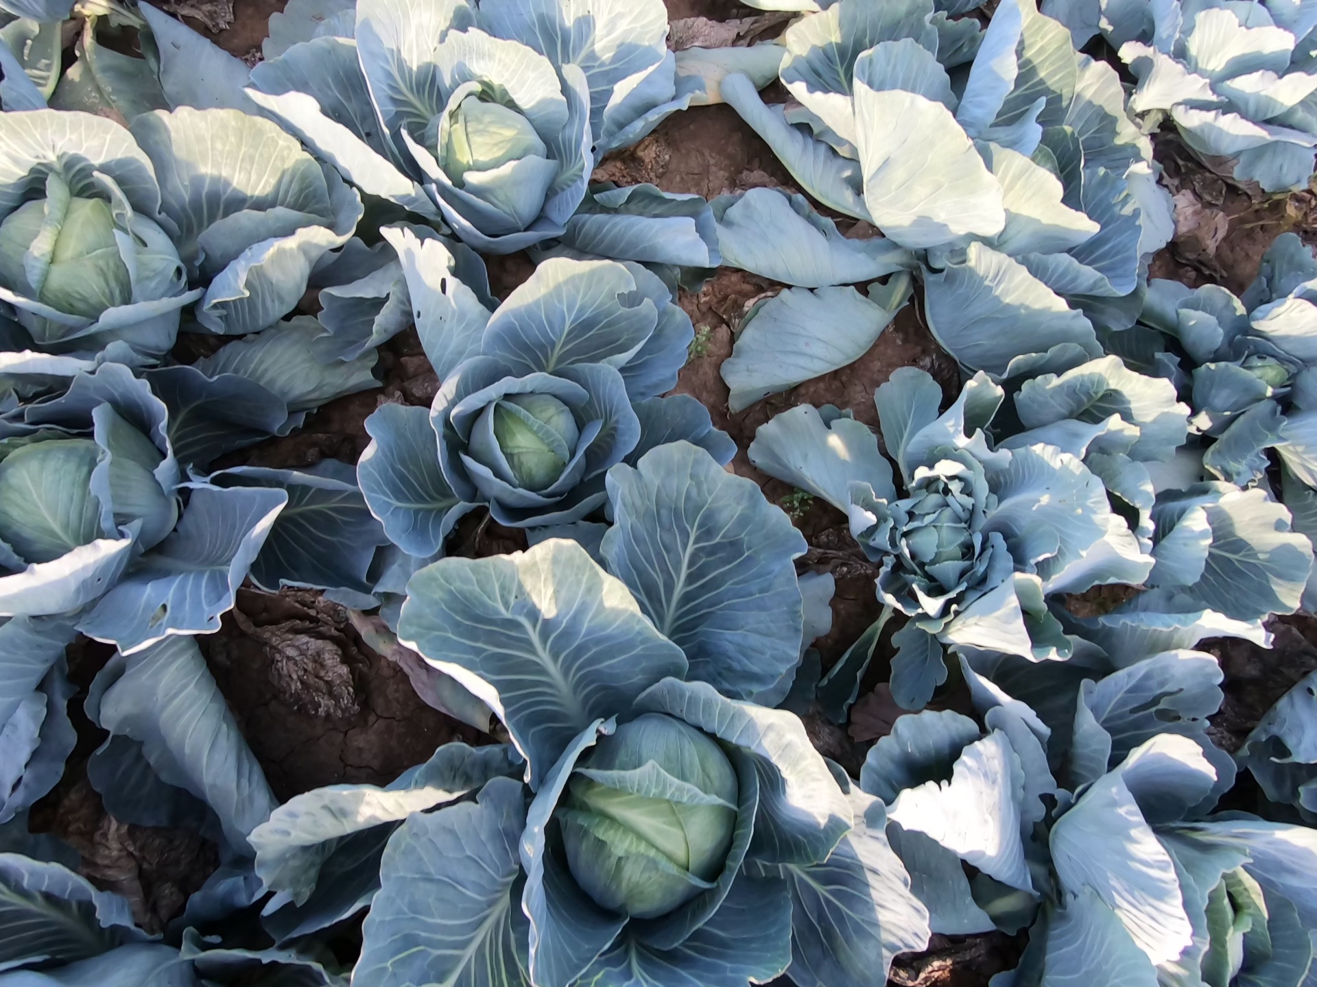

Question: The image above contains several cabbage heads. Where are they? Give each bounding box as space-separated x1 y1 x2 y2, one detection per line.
1130 843 1249 984
428 101 545 223
1 441 146 563
911 509 972 576
1244 356 1290 388
559 722 738 922
1218 0 1277 63
475 392 579 491
1 194 176 332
